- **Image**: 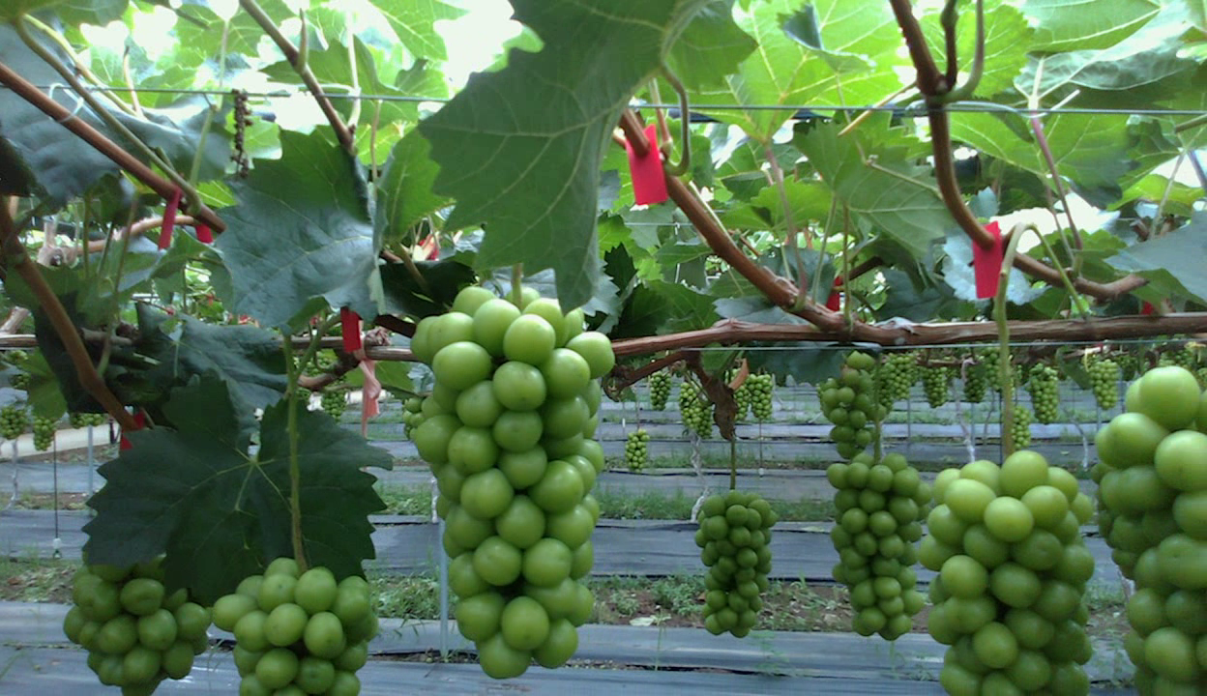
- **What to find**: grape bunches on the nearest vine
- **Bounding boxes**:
[62,550,212,695]
[212,558,380,695]
[918,449,1095,695]
[1094,367,1206,695]
[410,284,615,680]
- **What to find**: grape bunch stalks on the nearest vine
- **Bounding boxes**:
[281,334,308,575]
[511,263,522,310]
[992,220,1027,457]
